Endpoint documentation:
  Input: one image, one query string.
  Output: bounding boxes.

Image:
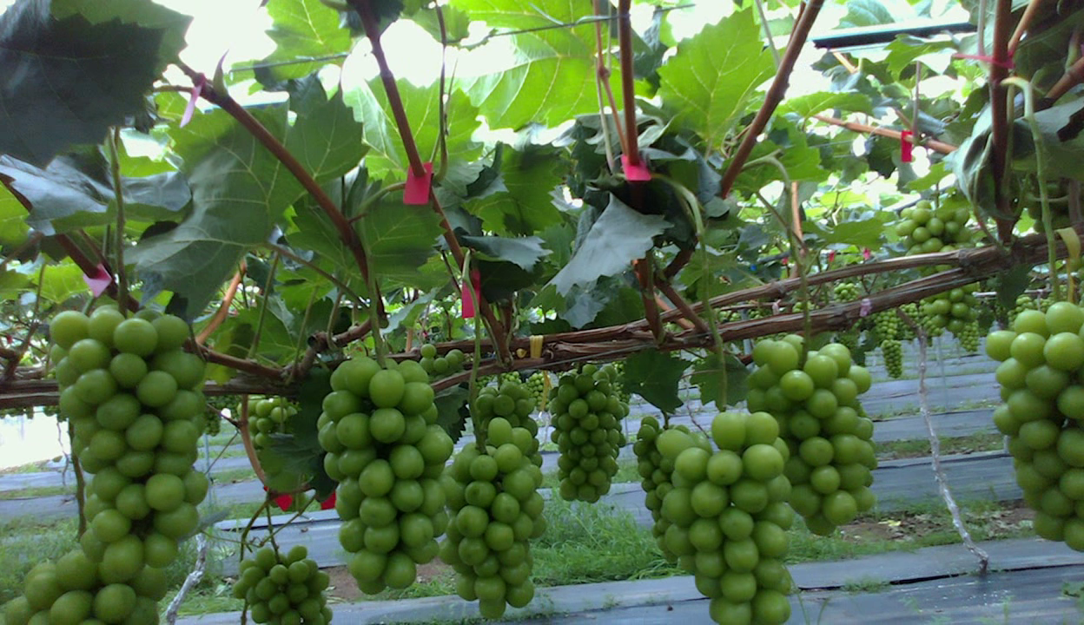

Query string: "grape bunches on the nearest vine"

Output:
[985,301,1083,551]
[438,417,548,619]
[318,359,454,595]
[6,549,167,624]
[234,544,334,624]
[50,304,209,580]
[656,411,793,624]
[745,332,876,536]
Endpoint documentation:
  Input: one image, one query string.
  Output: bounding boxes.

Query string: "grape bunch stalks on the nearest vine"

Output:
[743,150,810,368]
[109,128,126,316]
[461,253,487,453]
[267,507,281,563]
[359,184,400,365]
[68,420,84,538]
[664,178,728,411]
[1015,76,1061,300]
